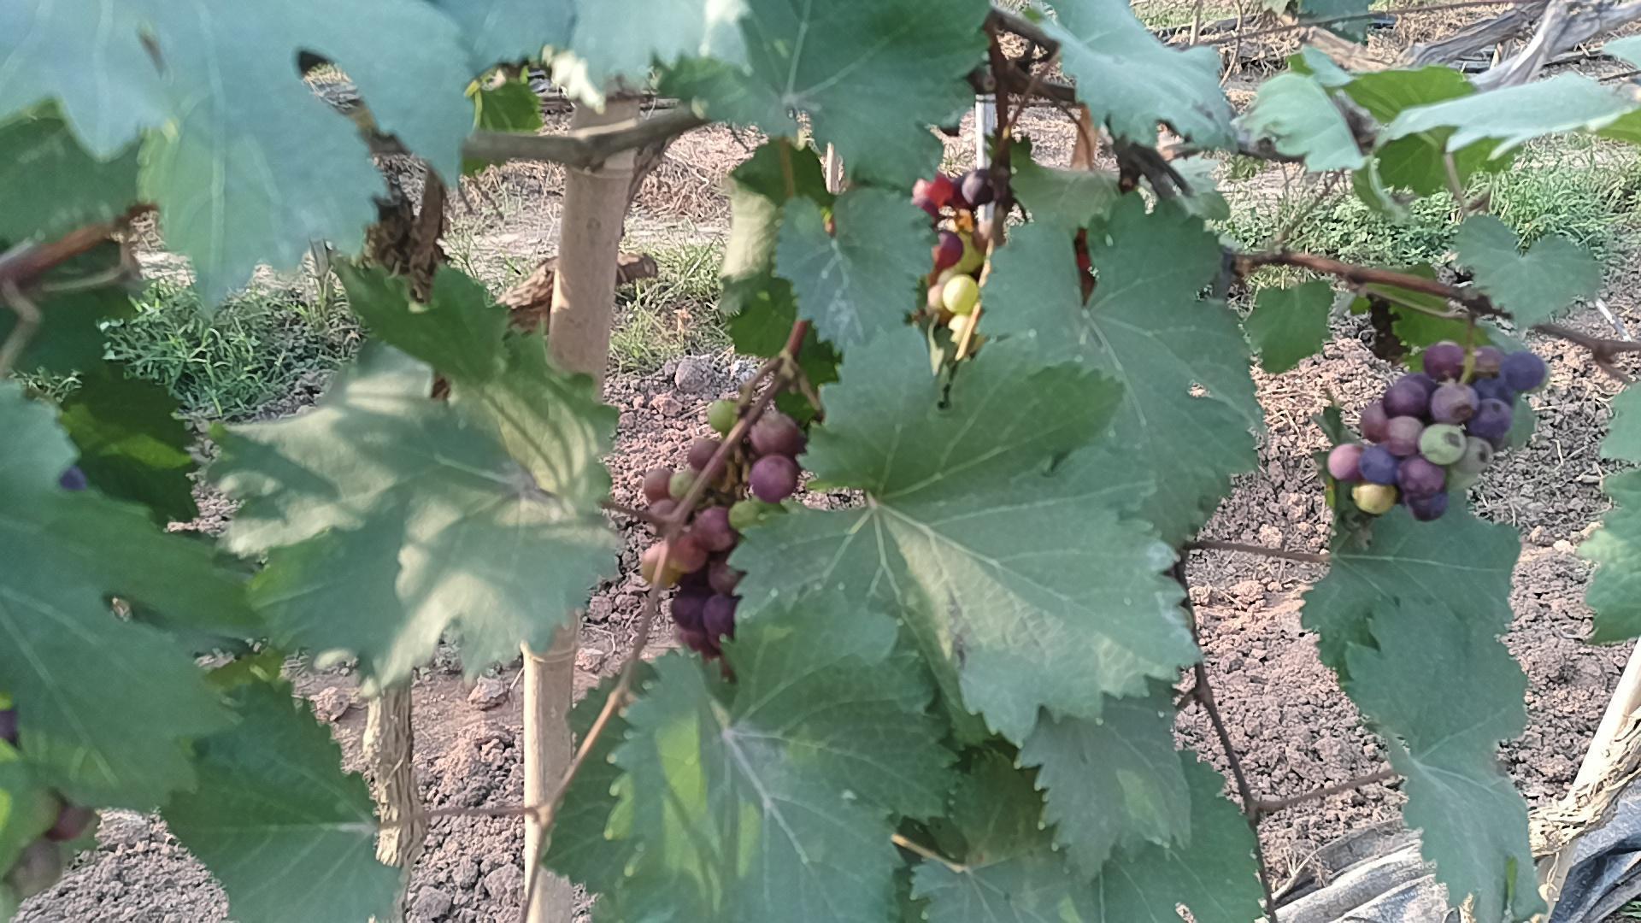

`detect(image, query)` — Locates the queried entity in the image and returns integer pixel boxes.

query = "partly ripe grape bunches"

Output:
[912,166,1016,353]
[1325,341,1548,520]
[641,399,805,661]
